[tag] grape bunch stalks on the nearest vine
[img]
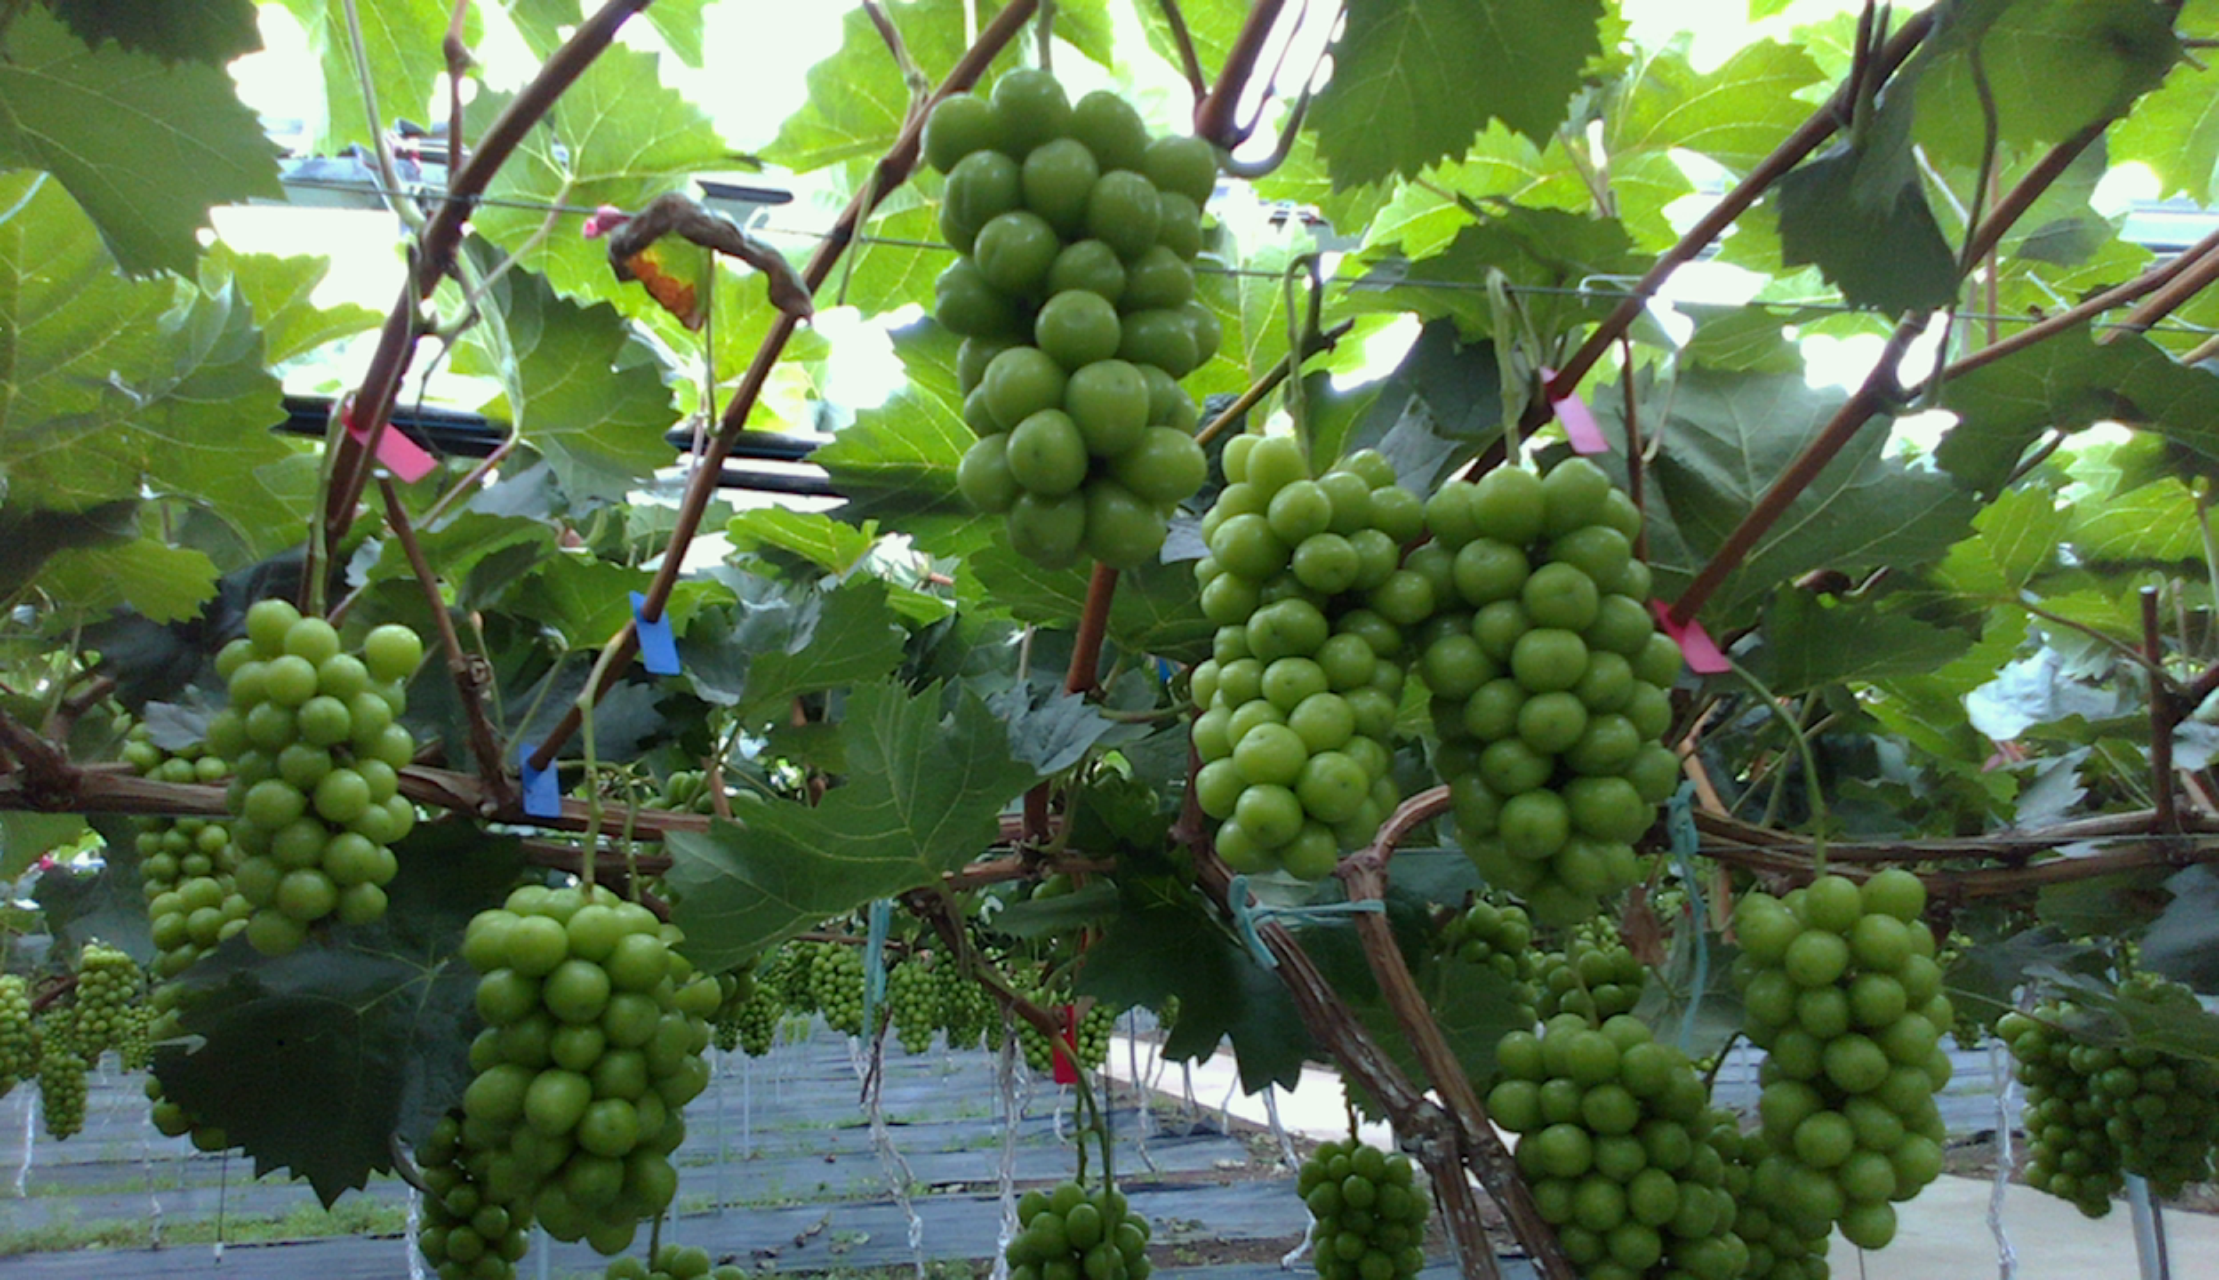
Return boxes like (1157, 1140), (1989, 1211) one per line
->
(1035, 2), (1056, 69)
(309, 389), (350, 617)
(574, 644), (619, 903)
(1286, 254), (1319, 476)
(1565, 932), (1595, 1028)
(1734, 661), (1828, 878)
(1485, 267), (1520, 464)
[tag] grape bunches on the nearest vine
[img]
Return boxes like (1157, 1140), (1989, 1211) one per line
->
(203, 603), (421, 956)
(1486, 1013), (1751, 1278)
(1732, 871), (1952, 1248)
(921, 64), (1220, 569)
(1191, 434), (1430, 882)
(1410, 453), (1678, 930)
(461, 885), (718, 1253)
